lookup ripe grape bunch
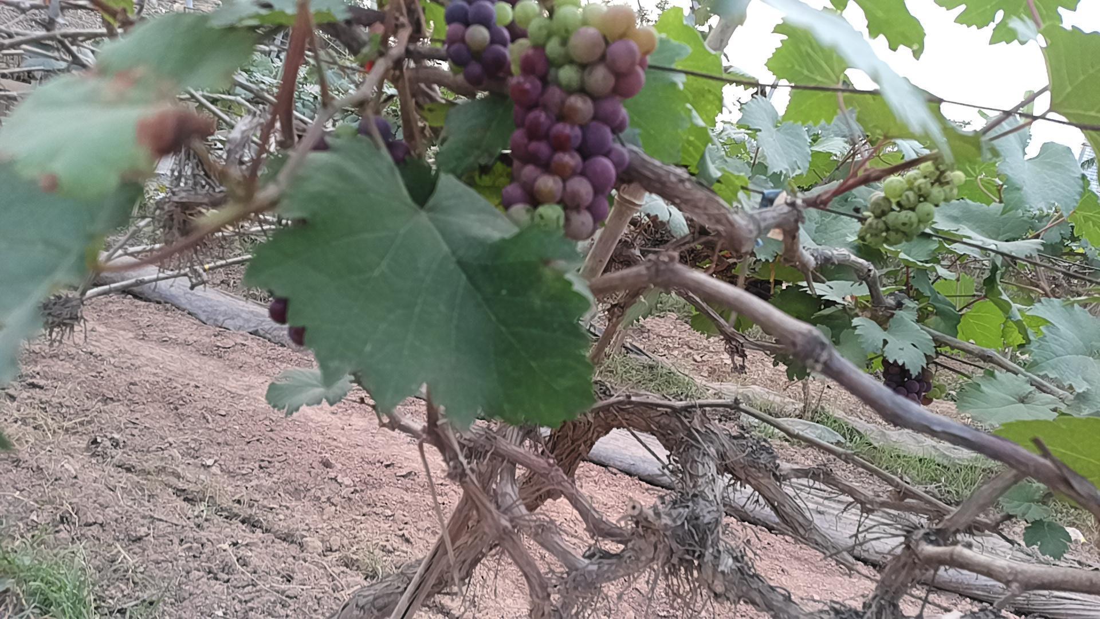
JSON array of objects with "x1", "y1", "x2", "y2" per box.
[{"x1": 268, "y1": 297, "x2": 304, "y2": 346}]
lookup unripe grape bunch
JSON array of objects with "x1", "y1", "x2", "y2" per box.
[{"x1": 858, "y1": 162, "x2": 963, "y2": 248}]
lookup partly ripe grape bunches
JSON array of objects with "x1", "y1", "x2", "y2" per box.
[
  {"x1": 446, "y1": 0, "x2": 657, "y2": 240},
  {"x1": 313, "y1": 116, "x2": 410, "y2": 163},
  {"x1": 882, "y1": 359, "x2": 943, "y2": 405}
]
